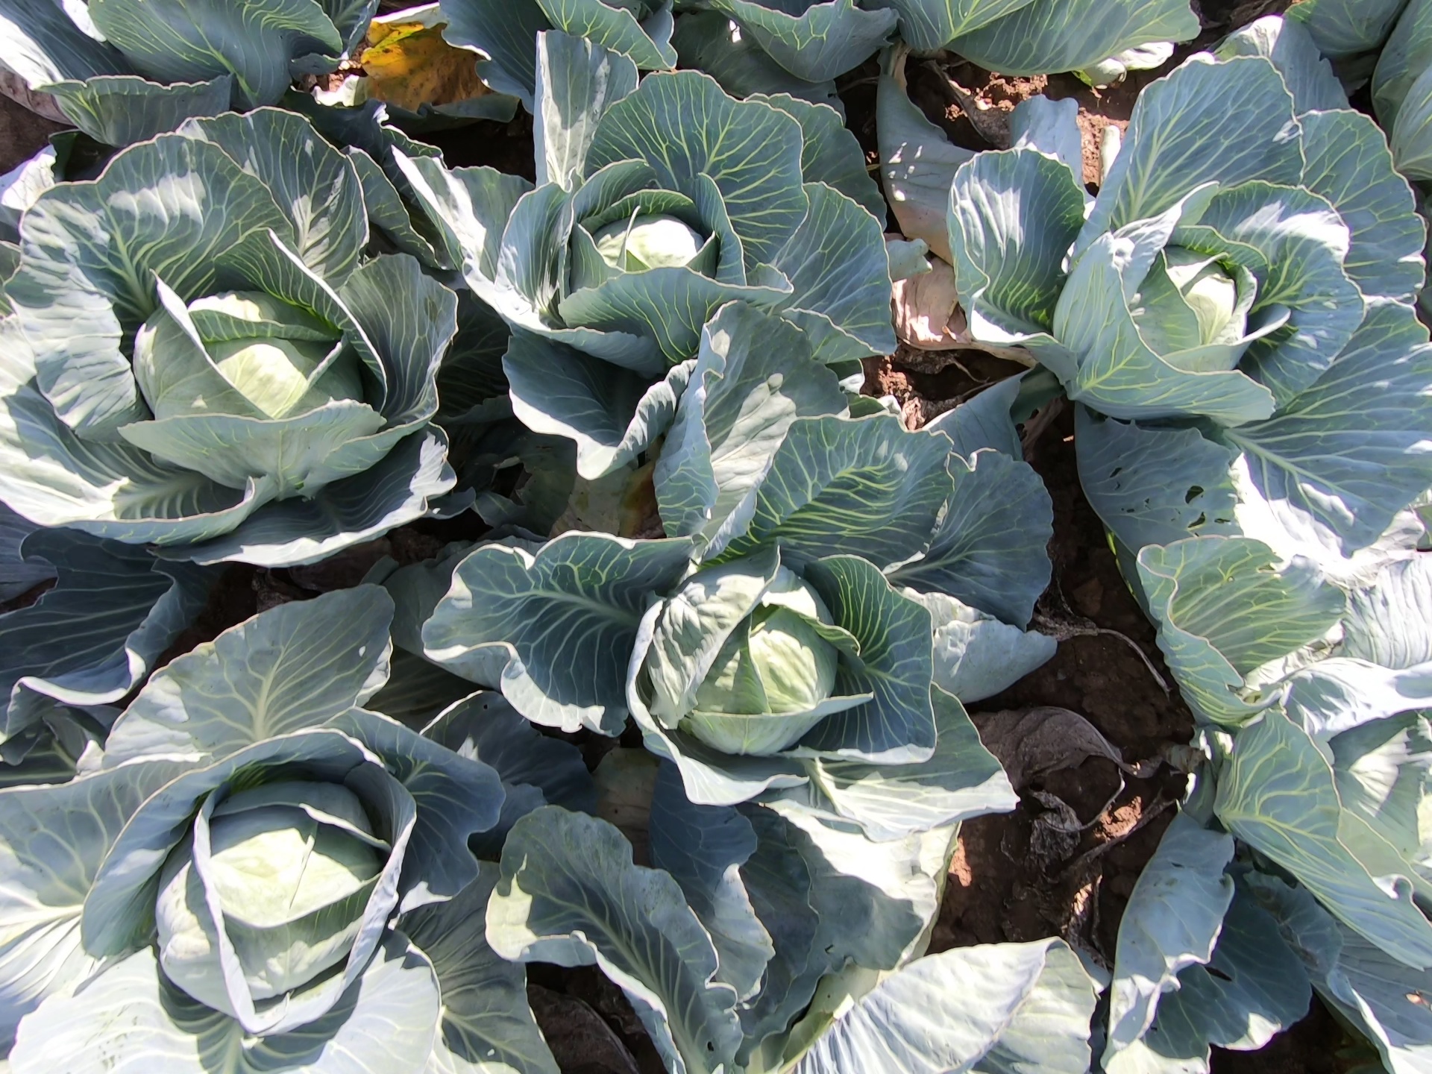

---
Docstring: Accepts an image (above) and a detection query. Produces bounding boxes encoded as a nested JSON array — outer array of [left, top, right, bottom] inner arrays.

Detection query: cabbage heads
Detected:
[[577, 216, 716, 348], [1282, 705, 1429, 894], [668, 560, 840, 751], [186, 785, 372, 996], [1091, 242, 1244, 407], [172, 291, 368, 466]]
